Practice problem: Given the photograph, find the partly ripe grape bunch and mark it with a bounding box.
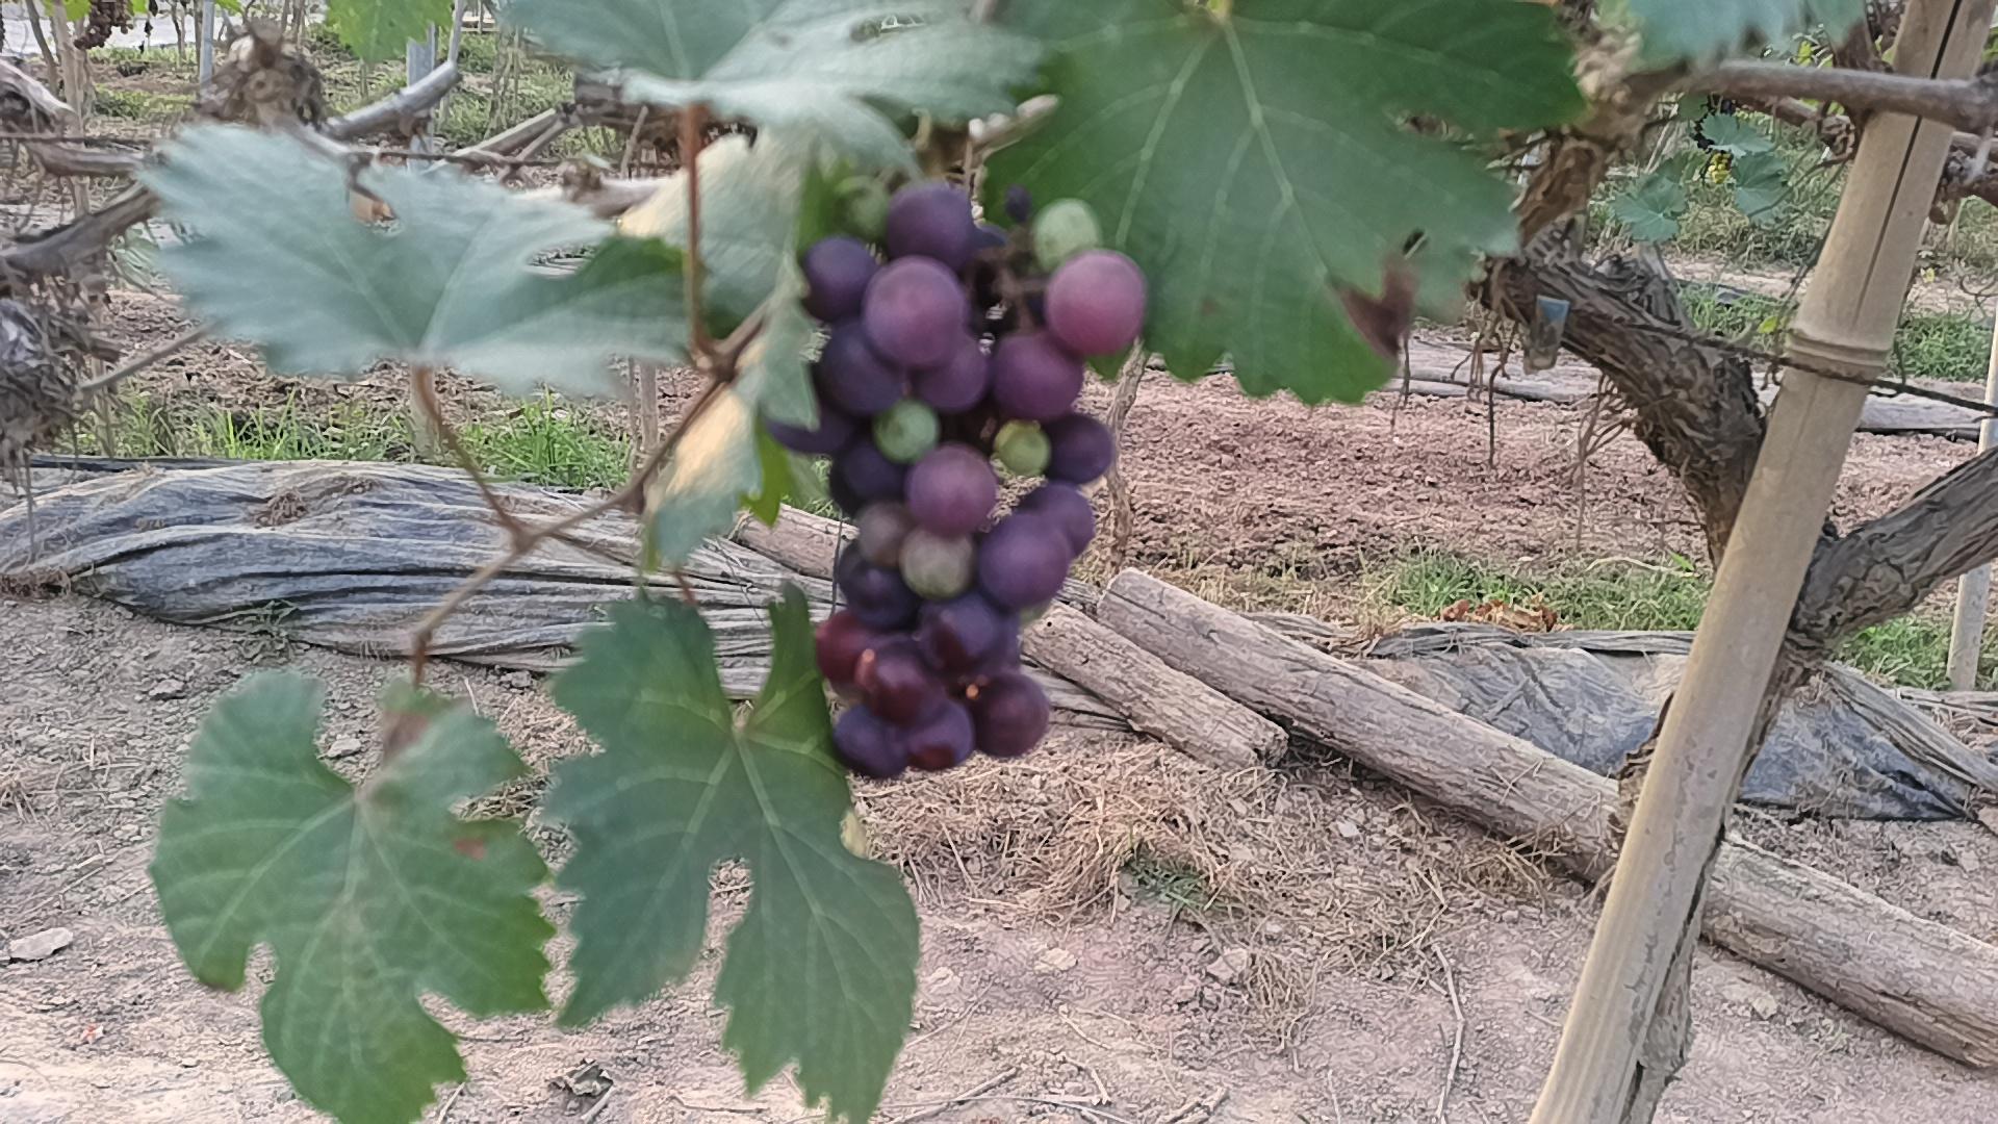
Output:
[766,180,1145,777]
